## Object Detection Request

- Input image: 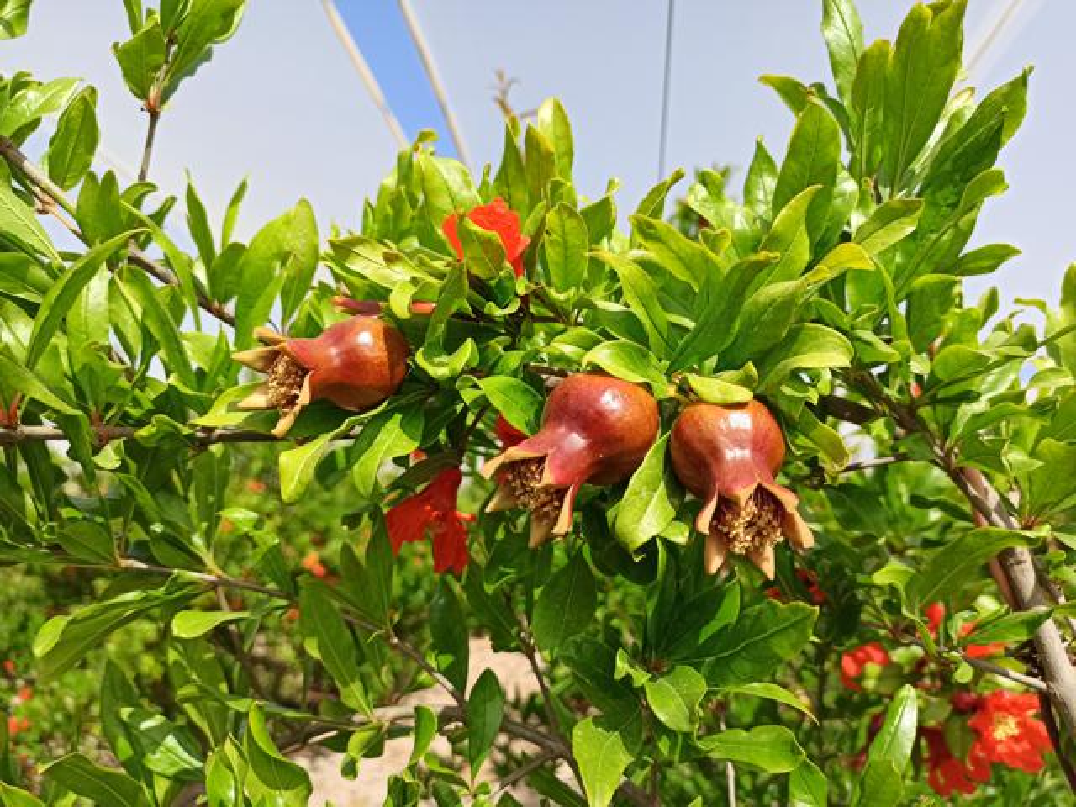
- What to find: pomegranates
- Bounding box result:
[669,397,815,582]
[479,368,662,551]
[230,294,409,439]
